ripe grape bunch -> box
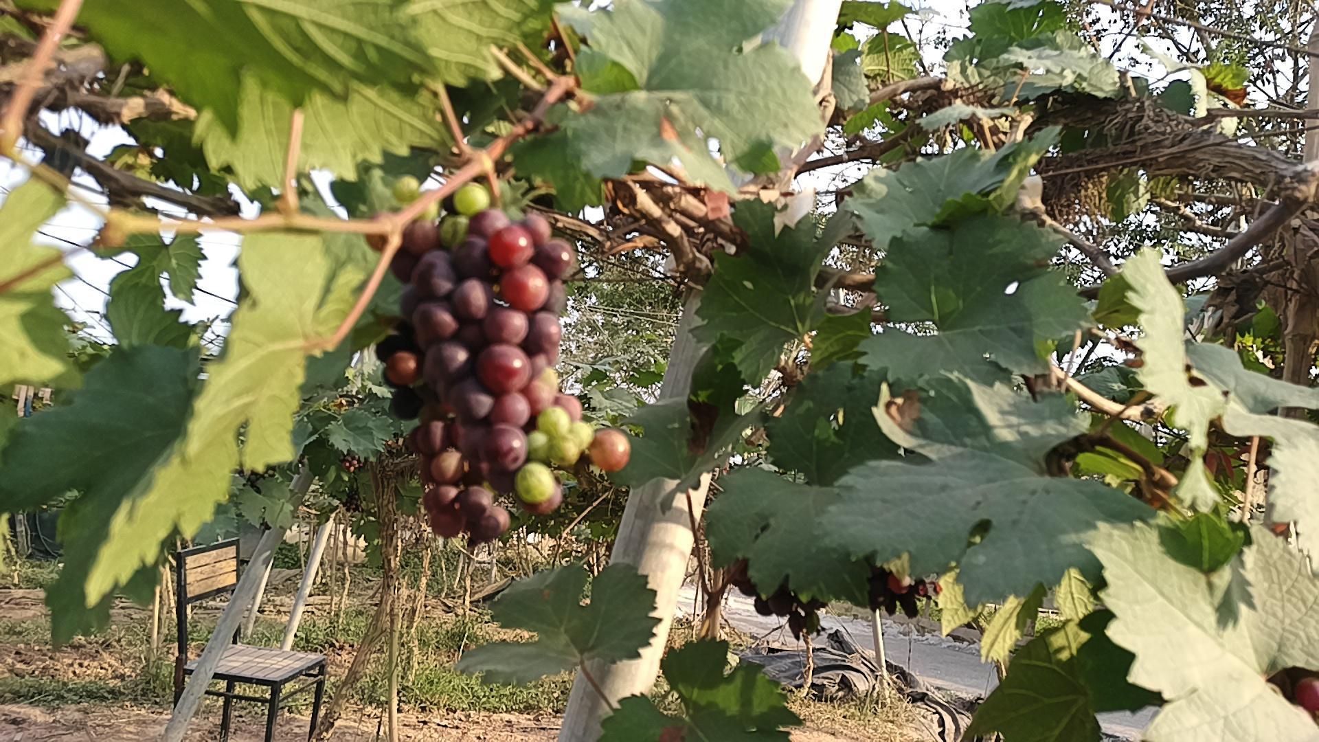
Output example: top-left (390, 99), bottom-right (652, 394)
top-left (1272, 667), bottom-right (1318, 718)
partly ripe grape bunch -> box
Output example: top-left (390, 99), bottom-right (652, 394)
top-left (365, 176), bottom-right (629, 543)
